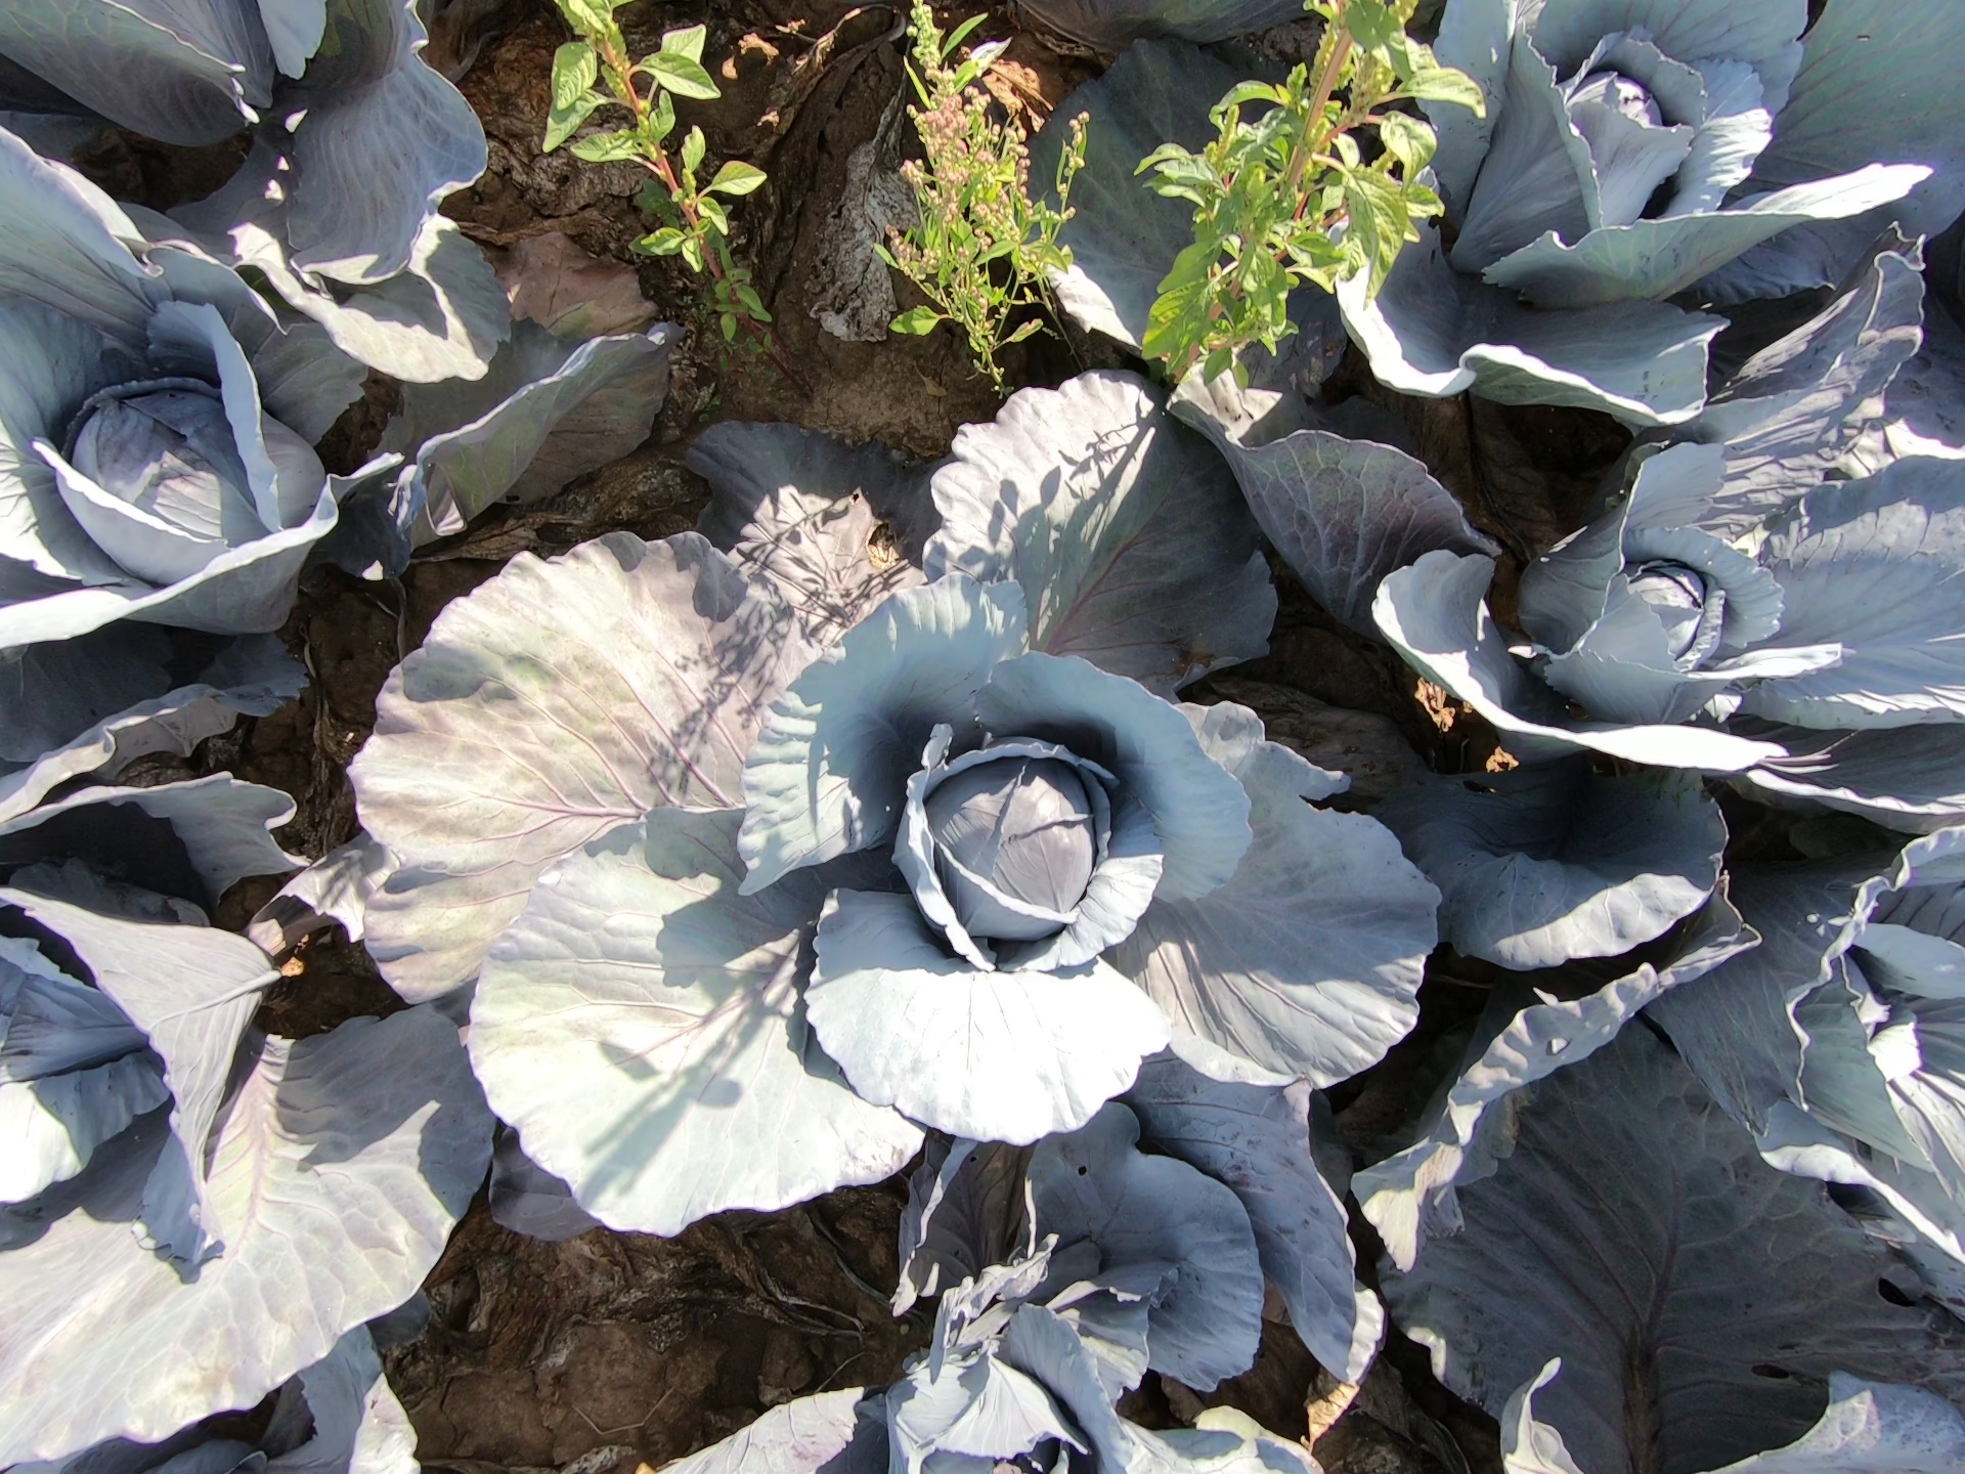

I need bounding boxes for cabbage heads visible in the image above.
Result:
[925,747,1107,930]
[71,387,320,588]
[2,897,138,1089]
[906,1368,1073,1473]
[1576,562,1712,680]
[1546,68,1663,215]
[1710,940,1884,1084]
